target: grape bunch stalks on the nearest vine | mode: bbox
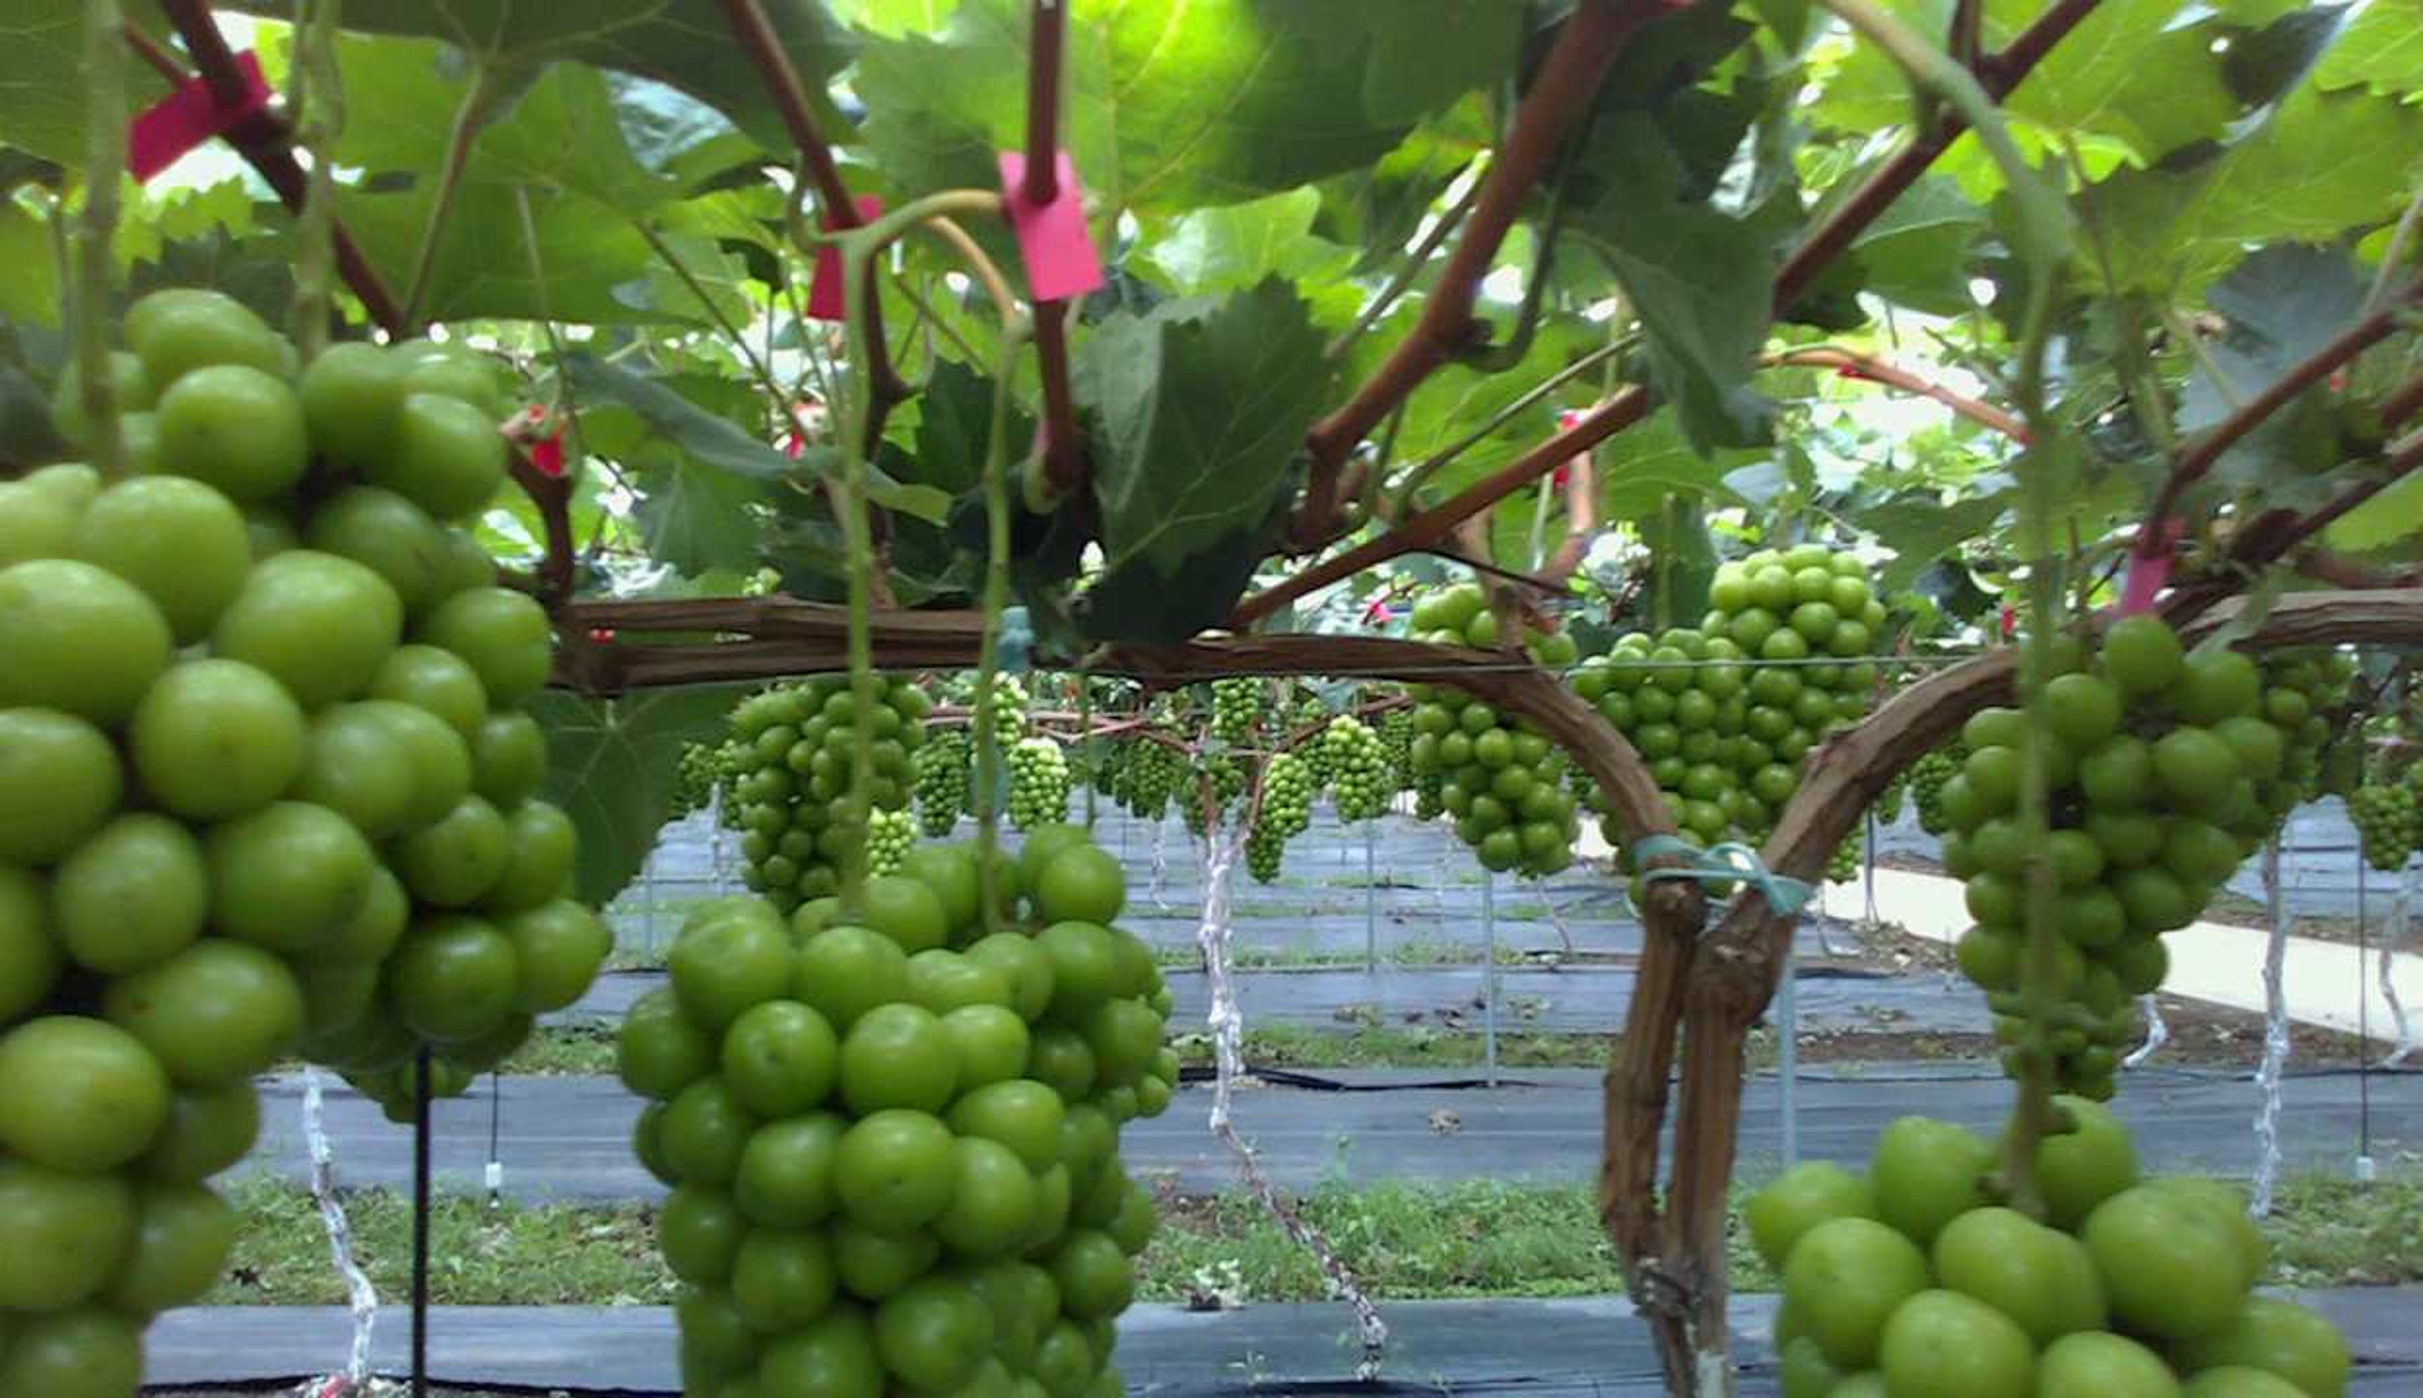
[1827,0,2075,1215]
[2075,534,2122,668]
[946,225,1019,936]
[291,0,336,353]
[827,181,1000,922]
[76,0,134,483]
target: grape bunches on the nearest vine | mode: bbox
[874,829,1163,1109]
[1745,1095,2357,1396]
[116,291,608,1068]
[1940,617,2287,1021]
[2,462,462,1396]
[617,893,1151,1396]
